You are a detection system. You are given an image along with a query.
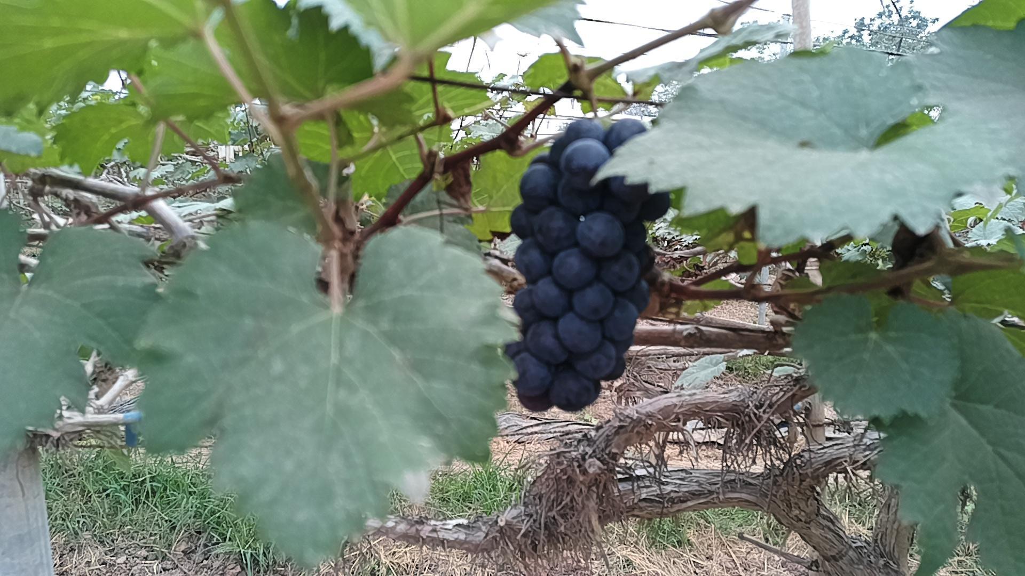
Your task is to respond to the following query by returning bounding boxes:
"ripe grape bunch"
[504,119,670,411]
